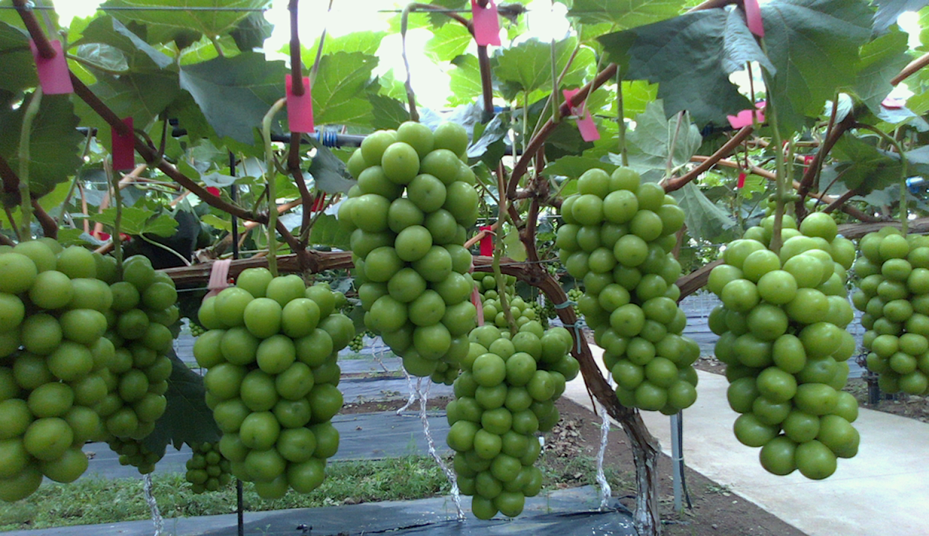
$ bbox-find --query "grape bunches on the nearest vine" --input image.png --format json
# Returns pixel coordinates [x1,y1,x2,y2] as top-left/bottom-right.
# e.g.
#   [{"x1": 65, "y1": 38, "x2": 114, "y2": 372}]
[
  {"x1": 88, "y1": 253, "x2": 177, "y2": 442},
  {"x1": 444, "y1": 322, "x2": 580, "y2": 520},
  {"x1": 853, "y1": 226, "x2": 928, "y2": 395},
  {"x1": 195, "y1": 269, "x2": 355, "y2": 500},
  {"x1": 0, "y1": 237, "x2": 113, "y2": 502},
  {"x1": 338, "y1": 121, "x2": 479, "y2": 376},
  {"x1": 558, "y1": 165, "x2": 701, "y2": 414},
  {"x1": 706, "y1": 211, "x2": 860, "y2": 479}
]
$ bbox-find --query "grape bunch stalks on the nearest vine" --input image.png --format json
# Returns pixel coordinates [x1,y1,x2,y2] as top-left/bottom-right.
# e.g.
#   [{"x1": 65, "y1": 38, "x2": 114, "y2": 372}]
[
  {"x1": 263, "y1": 98, "x2": 287, "y2": 276},
  {"x1": 768, "y1": 104, "x2": 787, "y2": 252},
  {"x1": 111, "y1": 170, "x2": 124, "y2": 273},
  {"x1": 494, "y1": 160, "x2": 520, "y2": 340},
  {"x1": 19, "y1": 81, "x2": 42, "y2": 242},
  {"x1": 616, "y1": 64, "x2": 628, "y2": 167},
  {"x1": 846, "y1": 122, "x2": 907, "y2": 238},
  {"x1": 400, "y1": 1, "x2": 420, "y2": 122}
]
